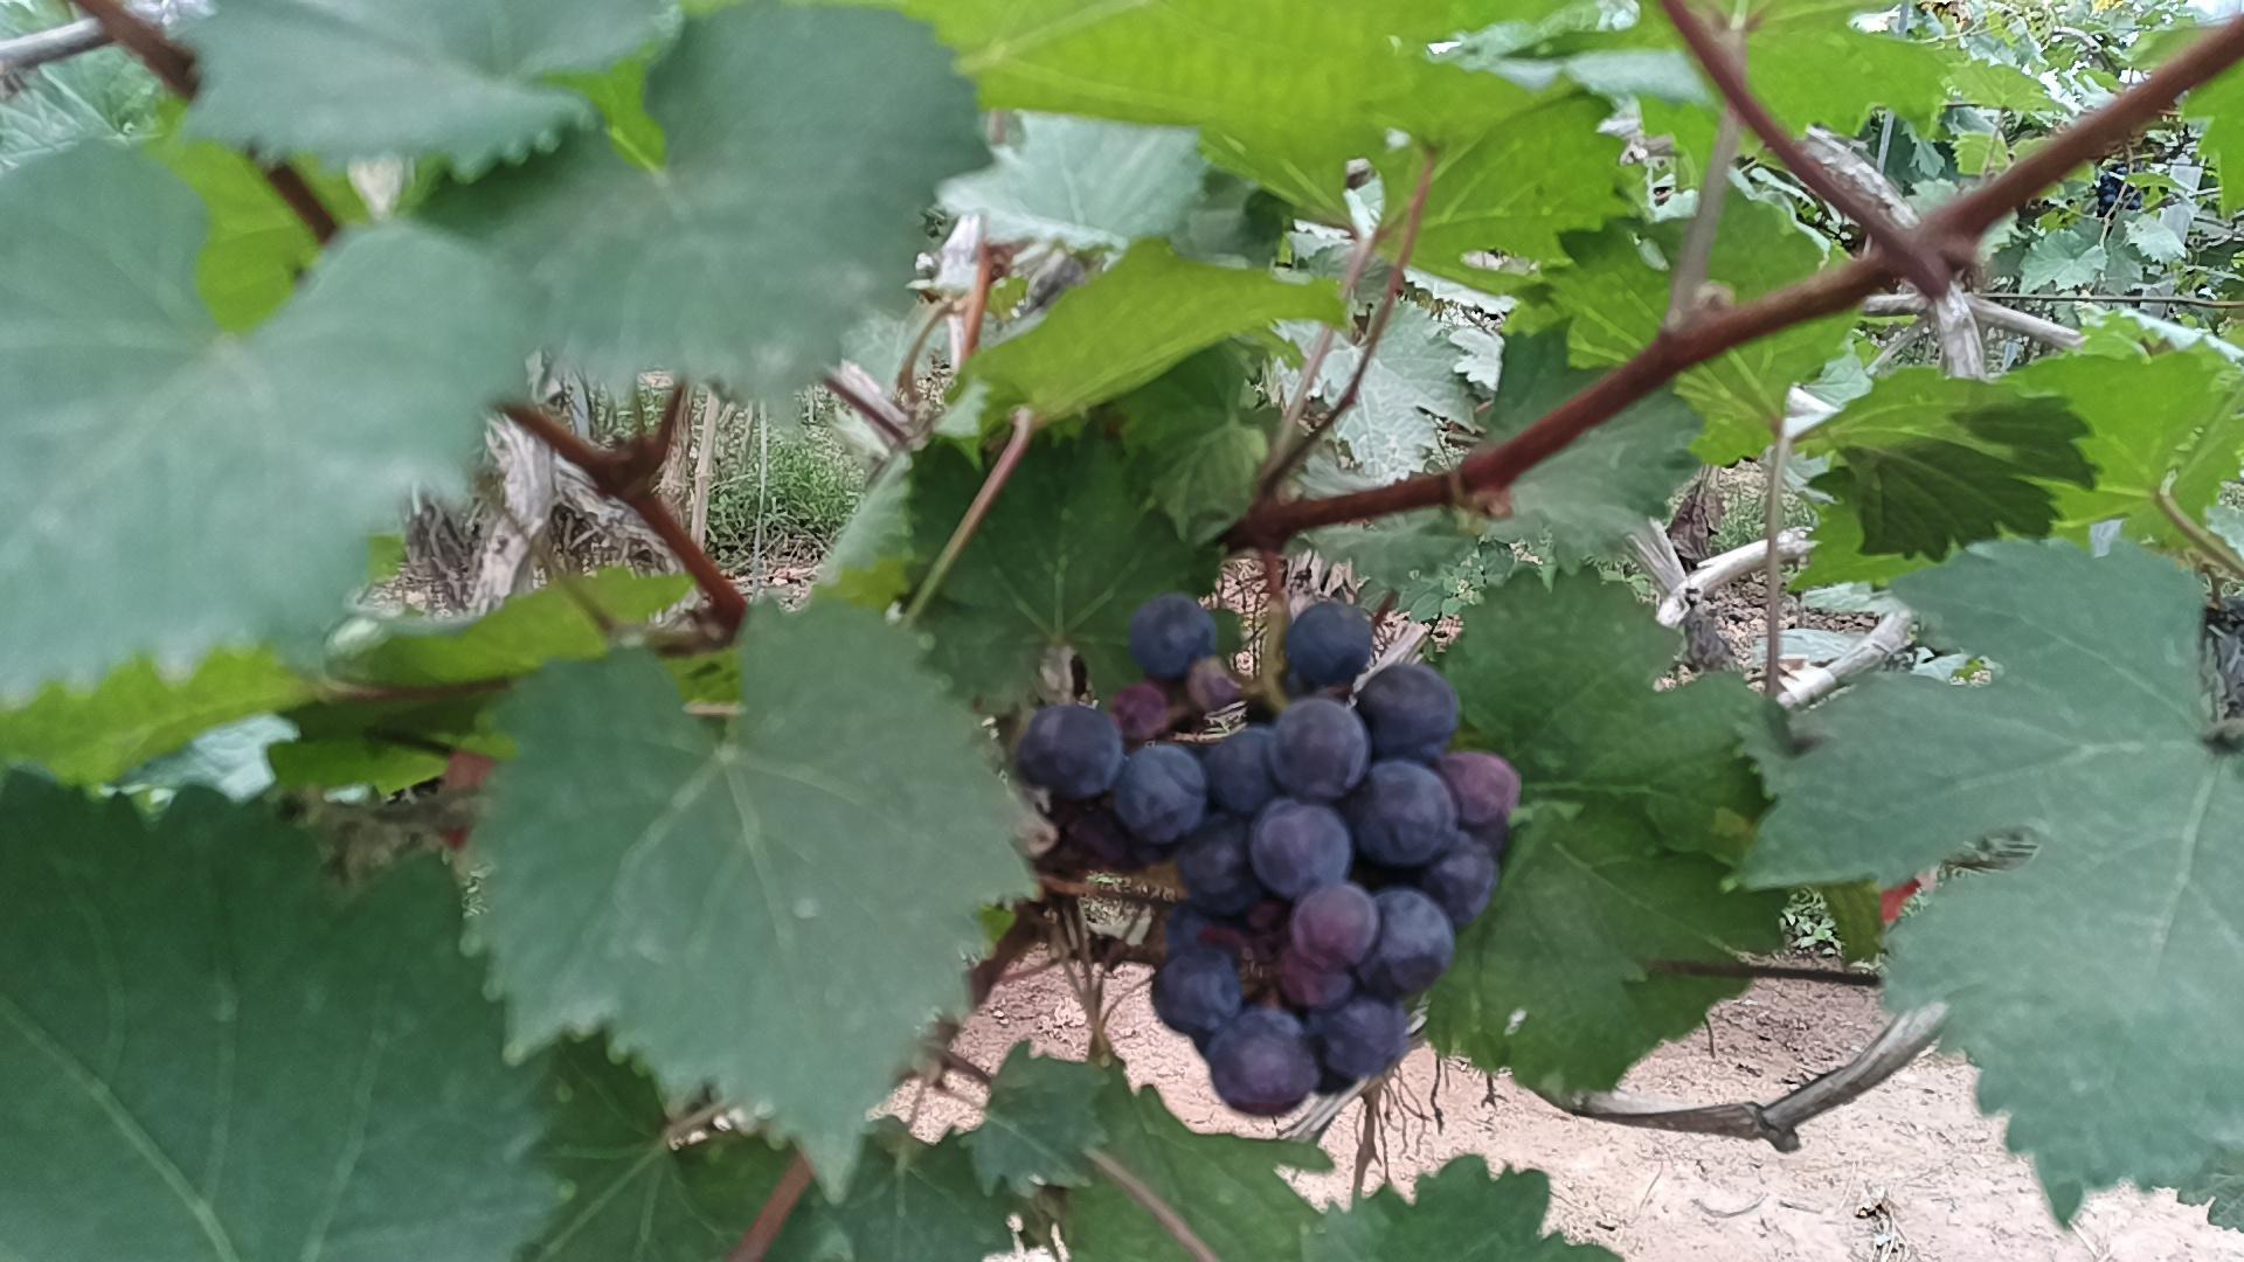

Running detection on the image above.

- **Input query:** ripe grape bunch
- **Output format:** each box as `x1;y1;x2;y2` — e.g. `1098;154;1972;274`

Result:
1017;594;1519;1114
